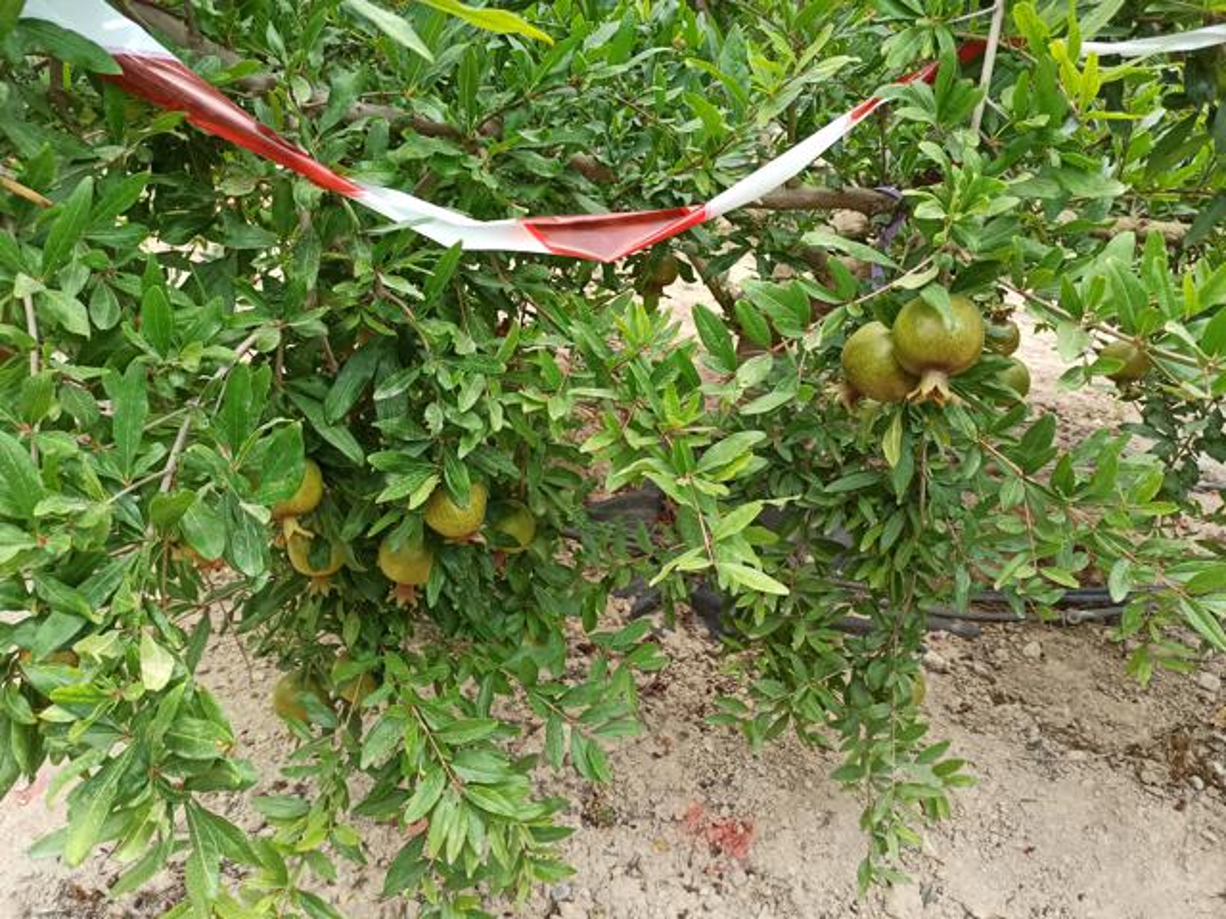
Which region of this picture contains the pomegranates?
[981,356,1031,408]
[268,456,326,544]
[636,251,678,299]
[180,546,228,571]
[1100,339,1151,402]
[337,672,377,705]
[983,304,1021,356]
[889,293,985,410]
[377,542,433,611]
[423,482,490,544]
[272,672,335,722]
[285,532,345,599]
[490,500,538,572]
[824,322,921,417]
